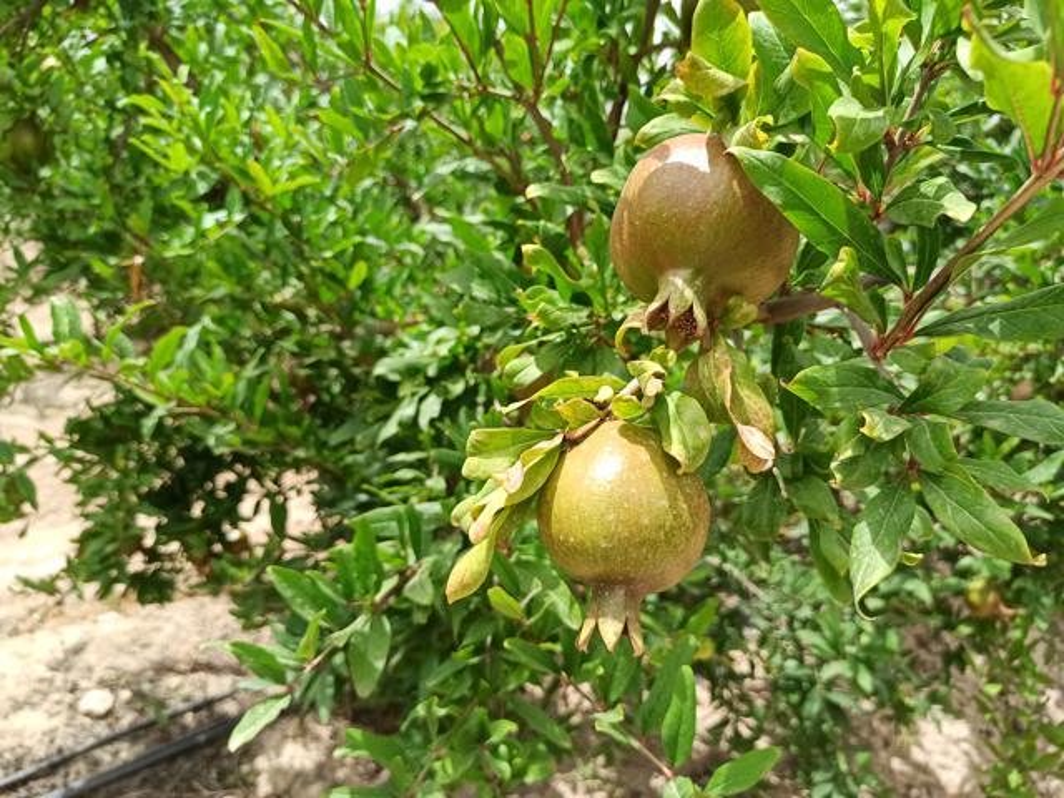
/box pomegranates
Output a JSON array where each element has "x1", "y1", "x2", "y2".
[
  {"x1": 973, "y1": 589, "x2": 1017, "y2": 627},
  {"x1": 535, "y1": 421, "x2": 712, "y2": 678},
  {"x1": 12, "y1": 120, "x2": 47, "y2": 166},
  {"x1": 612, "y1": 133, "x2": 800, "y2": 354}
]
